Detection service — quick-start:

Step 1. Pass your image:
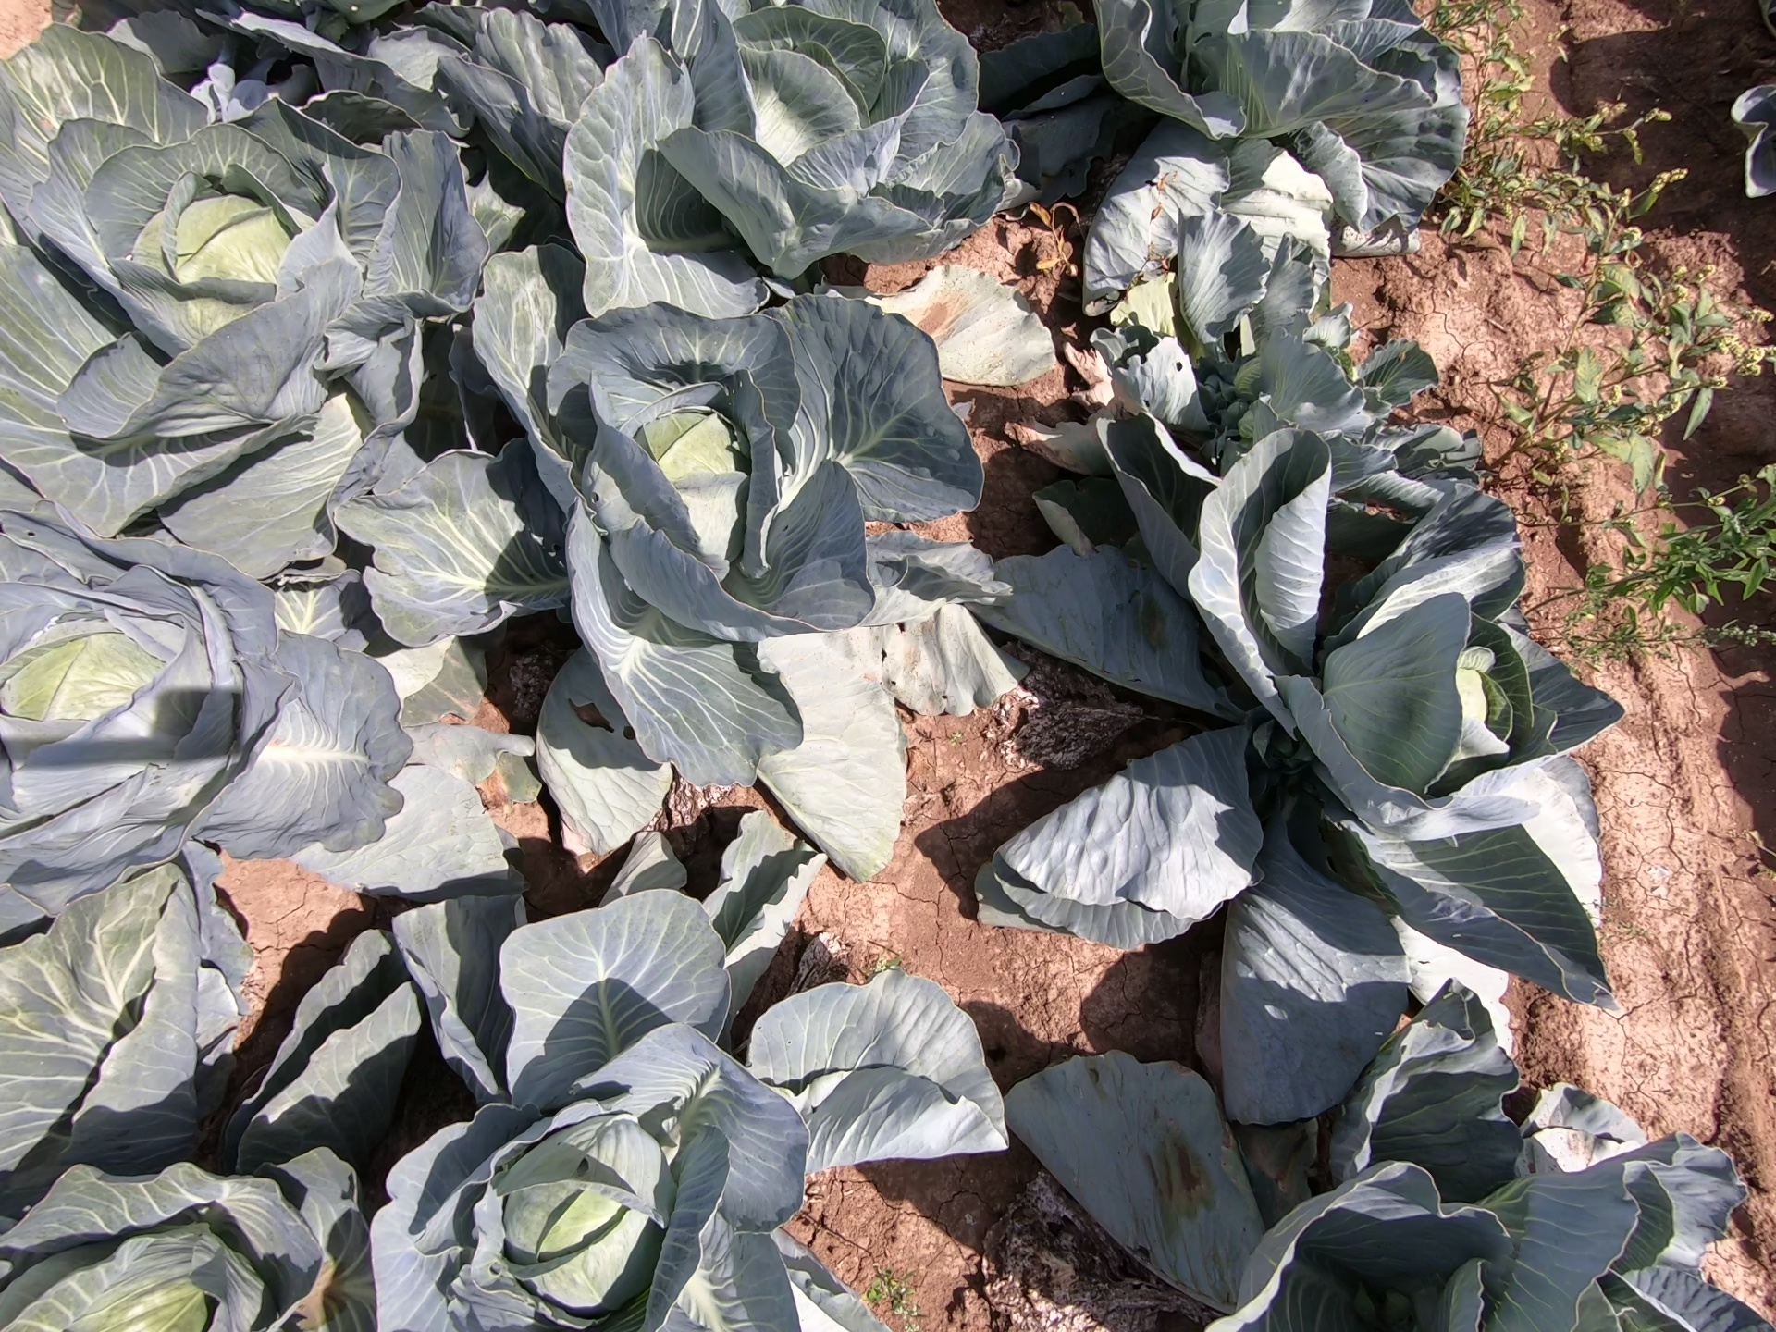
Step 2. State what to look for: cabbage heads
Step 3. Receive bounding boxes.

[1372,647,1500,777]
[499,1123,679,1319]
[120,197,350,359]
[3,622,222,808]
[623,402,767,567]
[691,79,845,240]
[0,1230,265,1330]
